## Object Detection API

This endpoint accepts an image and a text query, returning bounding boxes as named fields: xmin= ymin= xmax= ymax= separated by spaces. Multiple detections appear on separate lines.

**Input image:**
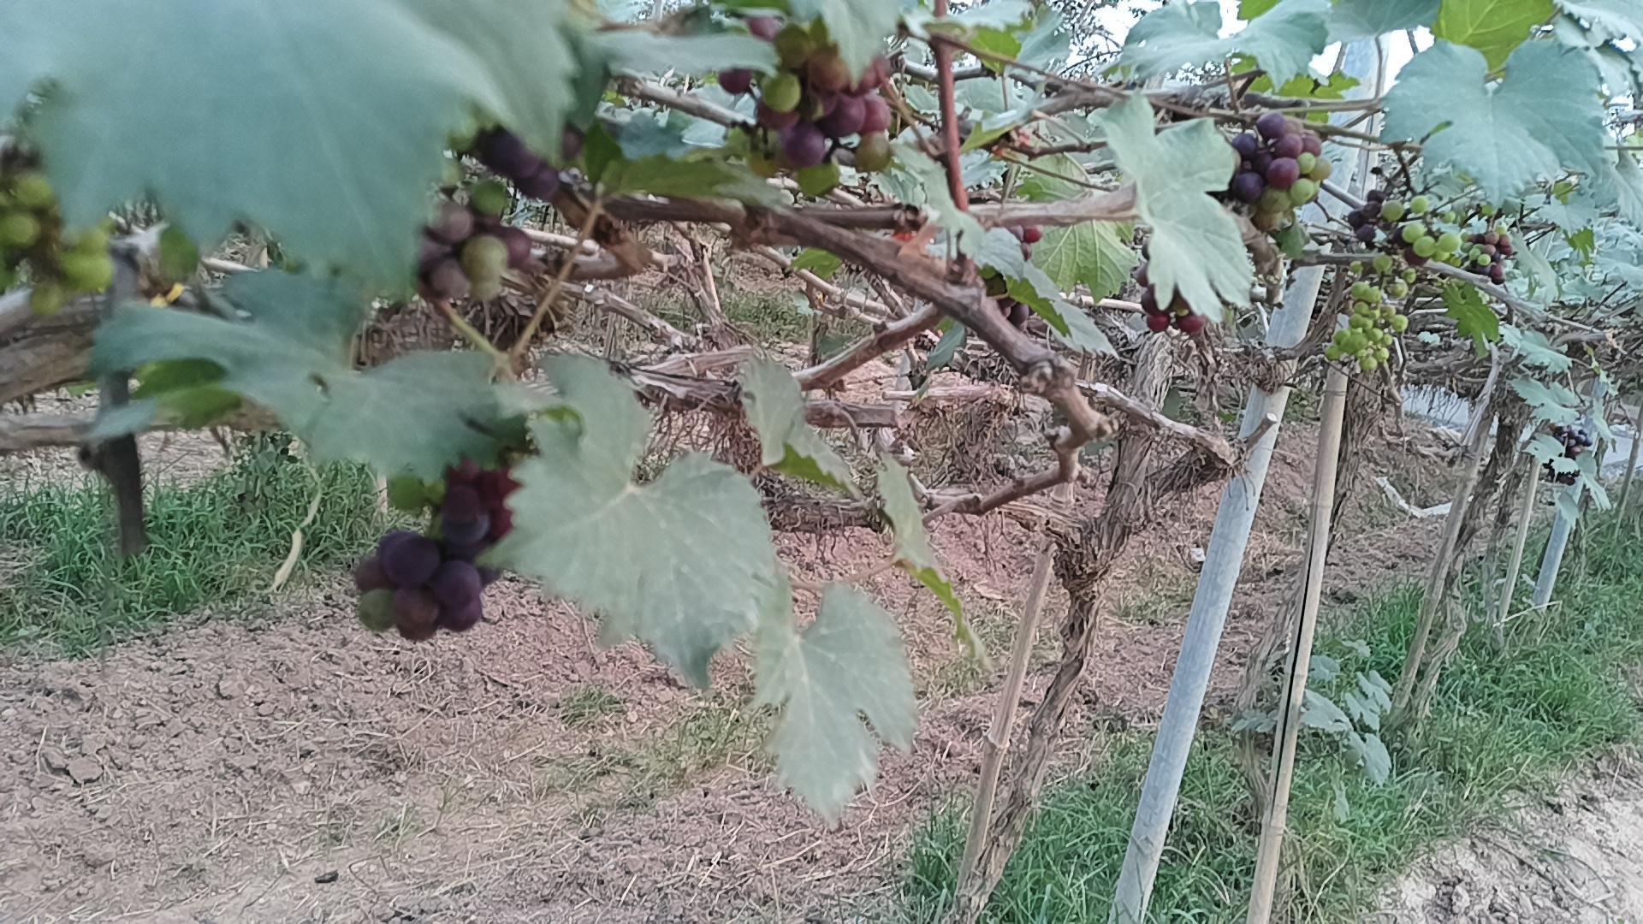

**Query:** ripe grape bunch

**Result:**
xmin=1544 ymin=423 xmax=1593 ymax=484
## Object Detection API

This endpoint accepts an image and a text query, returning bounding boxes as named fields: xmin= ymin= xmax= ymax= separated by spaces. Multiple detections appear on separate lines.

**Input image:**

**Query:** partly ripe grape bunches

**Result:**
xmin=1326 ymin=192 xmax=1462 ymax=376
xmin=979 ymin=226 xmax=1041 ymax=330
xmin=418 ymin=127 xmax=560 ymax=303
xmin=1457 ymin=226 xmax=1515 ymax=283
xmin=0 ymin=138 xmax=111 ymax=313
xmin=354 ymin=459 xmax=519 ymax=641
xmin=1230 ymin=115 xmax=1329 ymax=230
xmin=1132 ymin=233 xmax=1207 ymax=341
xmin=718 ymin=17 xmax=893 ymax=194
